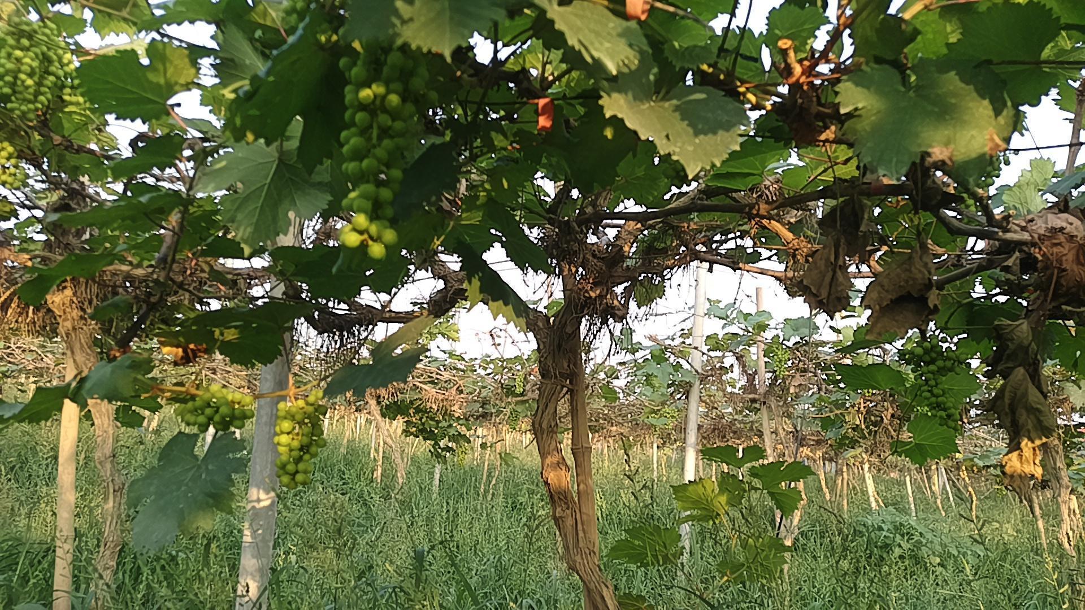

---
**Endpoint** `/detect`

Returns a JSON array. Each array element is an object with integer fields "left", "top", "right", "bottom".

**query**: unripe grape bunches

[
  {"left": 956, "top": 154, "right": 1009, "bottom": 212},
  {"left": 0, "top": 17, "right": 81, "bottom": 123},
  {"left": 338, "top": 41, "right": 438, "bottom": 259},
  {"left": 174, "top": 385, "right": 254, "bottom": 432},
  {"left": 0, "top": 142, "right": 26, "bottom": 189},
  {"left": 274, "top": 389, "right": 327, "bottom": 489},
  {"left": 280, "top": 0, "right": 344, "bottom": 56},
  {"left": 899, "top": 335, "right": 970, "bottom": 433}
]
